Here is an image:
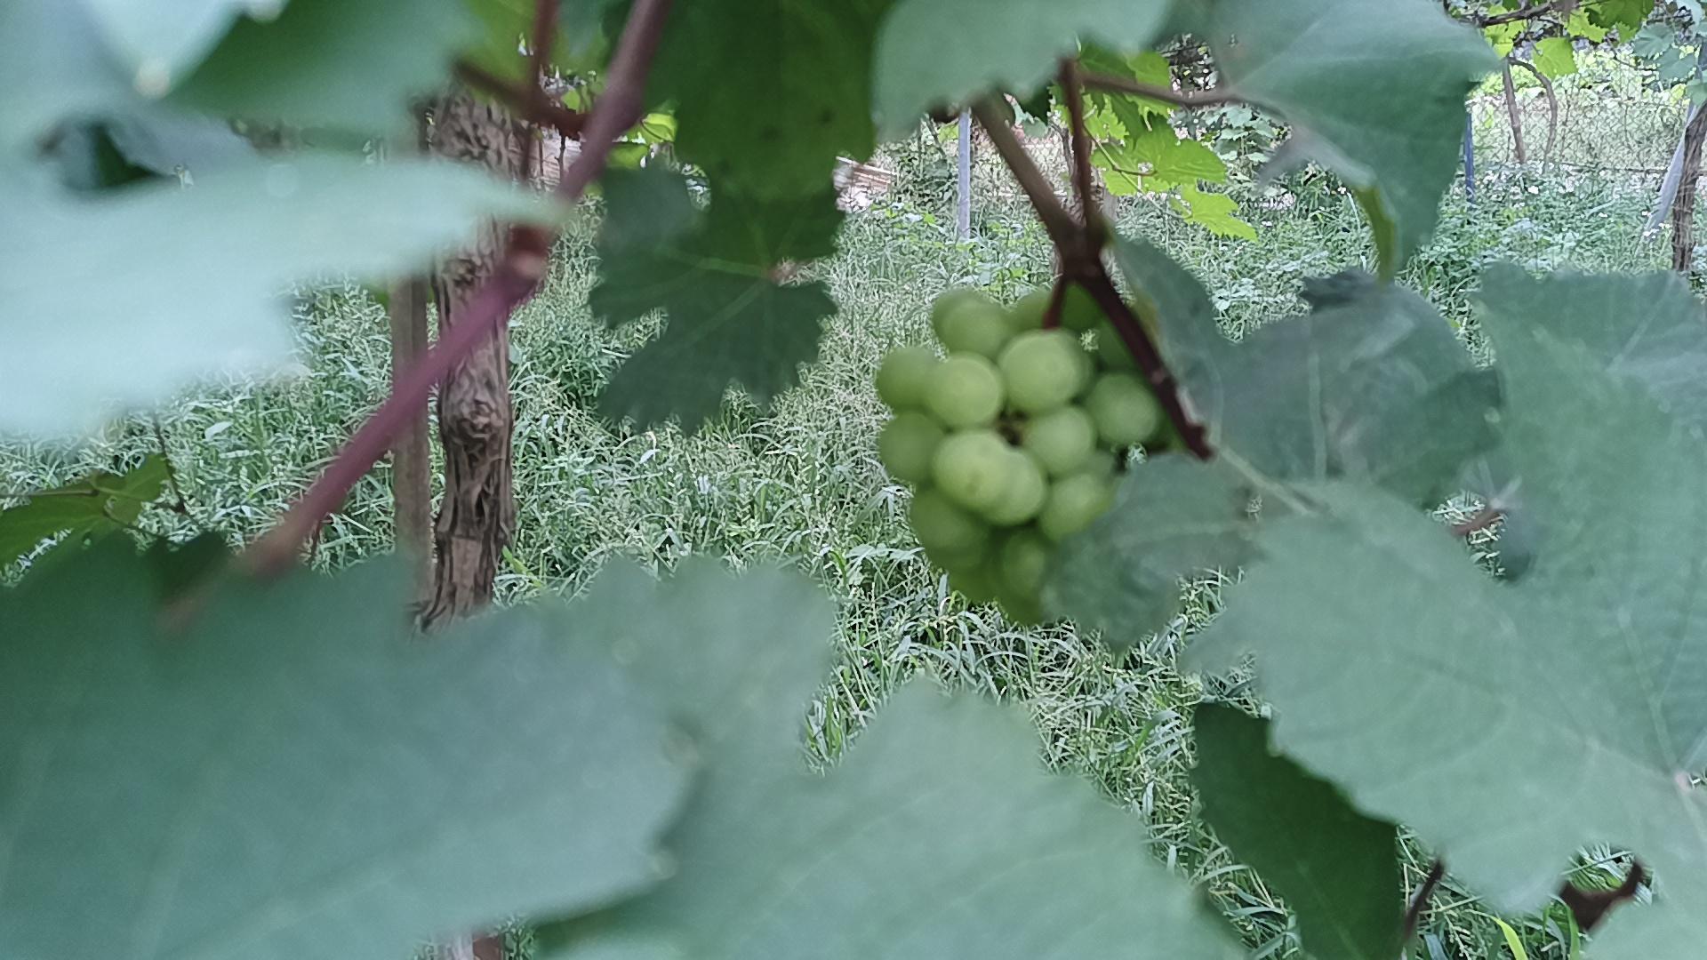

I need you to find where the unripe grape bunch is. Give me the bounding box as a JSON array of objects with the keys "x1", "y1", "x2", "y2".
[{"x1": 875, "y1": 289, "x2": 1181, "y2": 624}]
